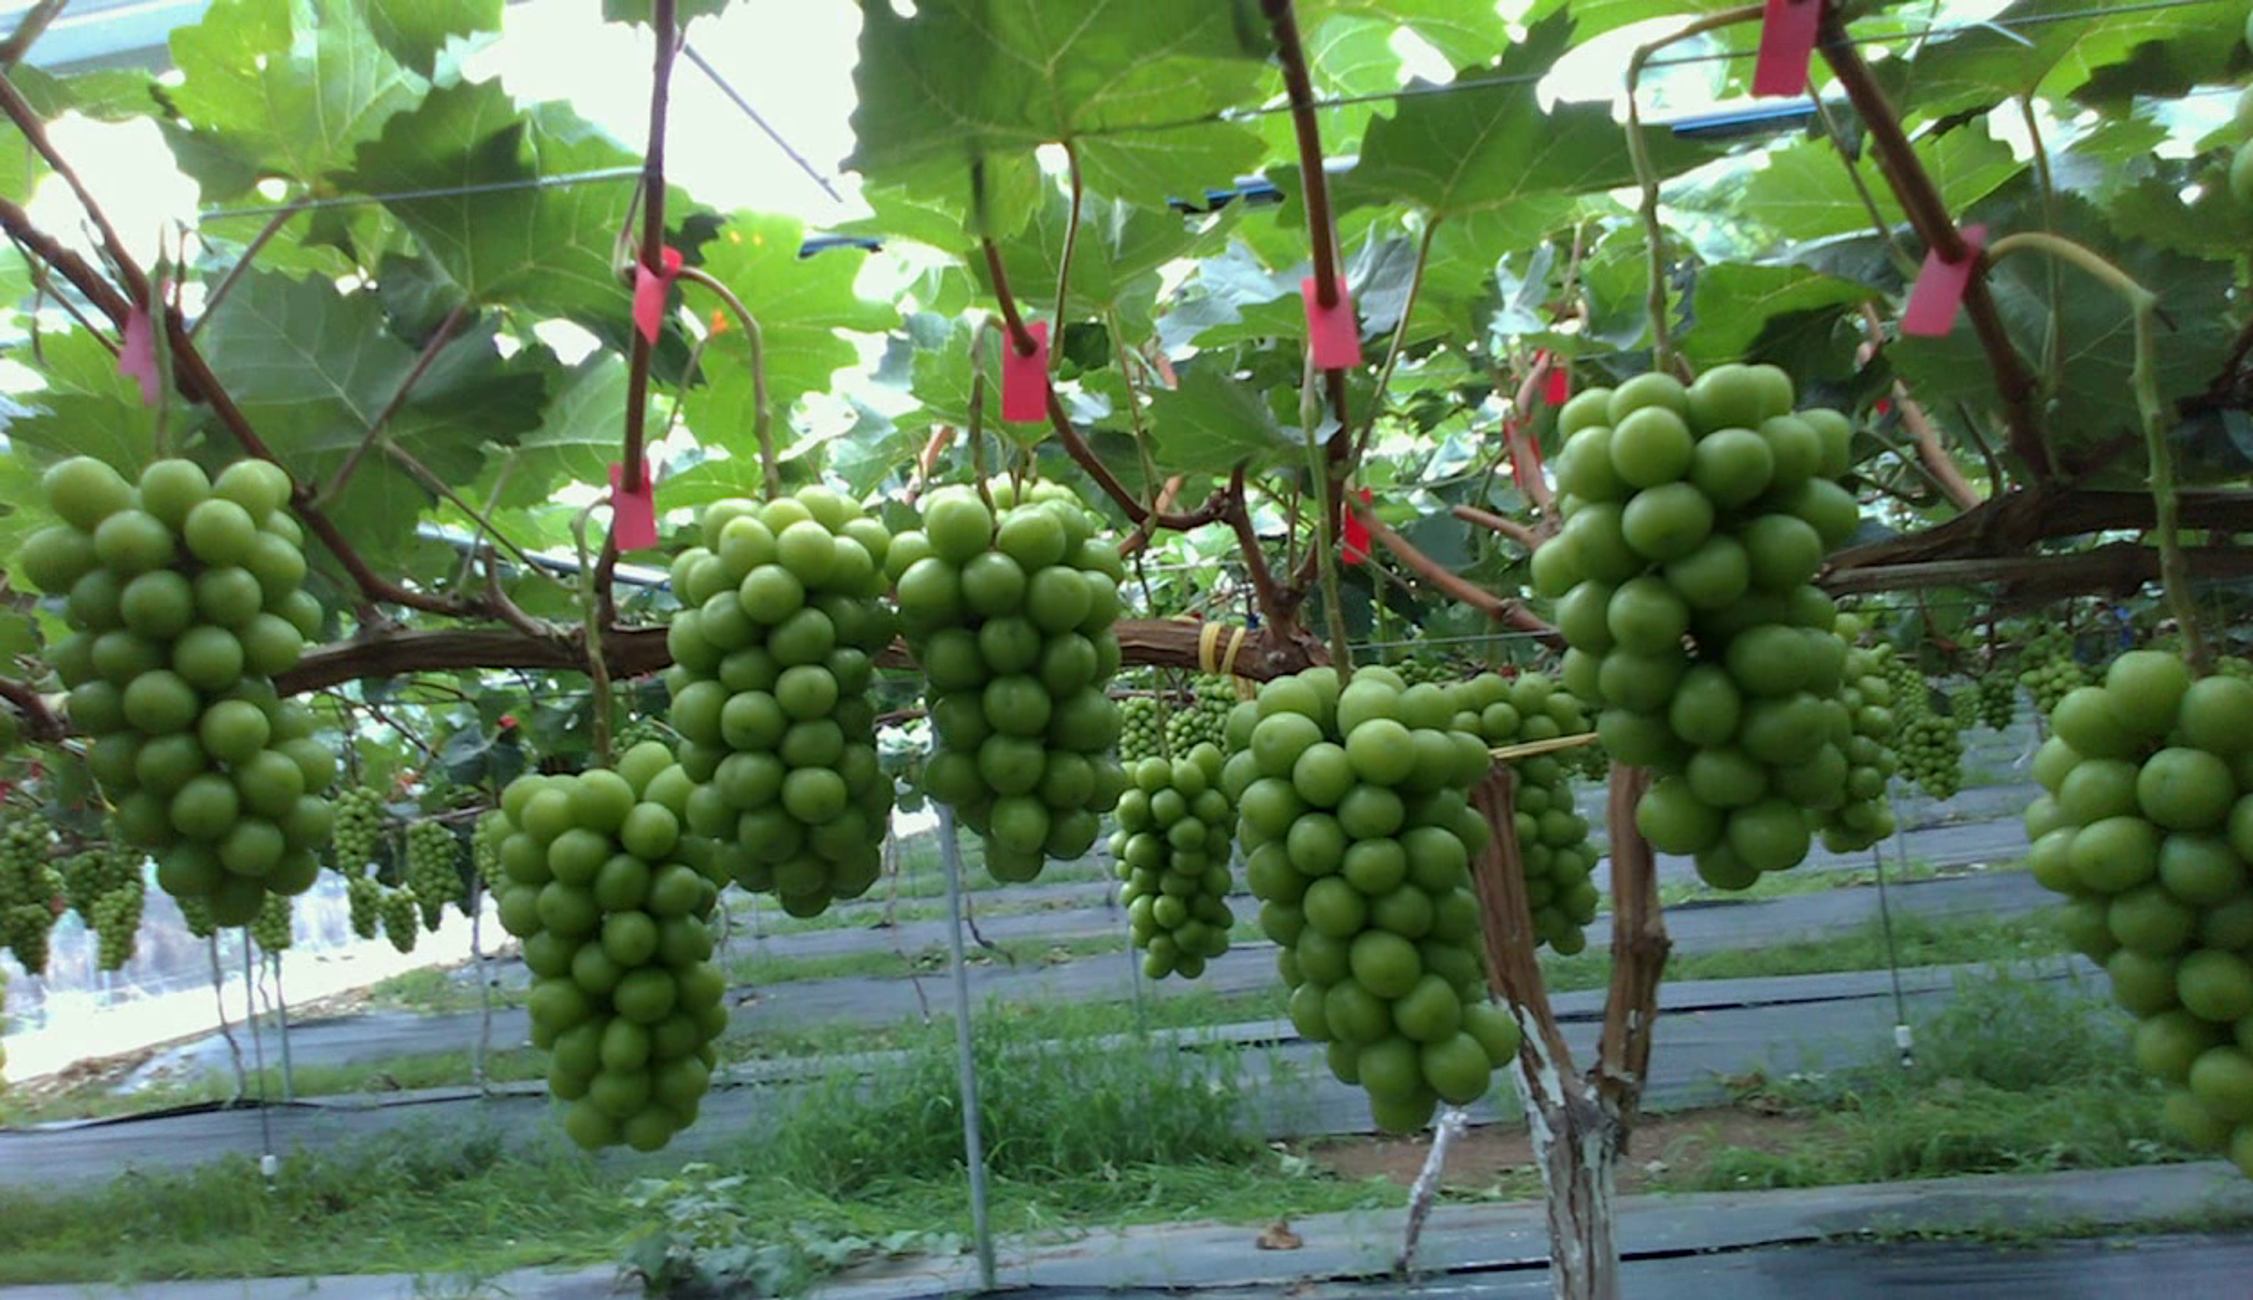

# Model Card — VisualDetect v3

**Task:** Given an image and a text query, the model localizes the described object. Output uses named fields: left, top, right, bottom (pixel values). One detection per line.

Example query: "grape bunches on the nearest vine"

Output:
left=668, top=486, right=895, bottom=921
left=2027, top=646, right=2249, bottom=1172
left=486, top=740, right=728, bottom=1154
left=23, top=453, right=338, bottom=930
left=885, top=498, right=1128, bottom=883
left=1527, top=361, right=1858, bottom=892
left=1219, top=664, right=1518, bottom=1139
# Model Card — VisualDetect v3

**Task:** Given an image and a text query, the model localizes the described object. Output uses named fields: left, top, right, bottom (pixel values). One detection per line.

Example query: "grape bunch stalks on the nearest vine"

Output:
left=1989, top=233, right=2211, bottom=670
left=1623, top=5, right=1758, bottom=372
left=966, top=314, right=1004, bottom=513
left=574, top=497, right=614, bottom=766
left=684, top=267, right=778, bottom=498
left=1300, top=350, right=1352, bottom=682
left=146, top=262, right=175, bottom=457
